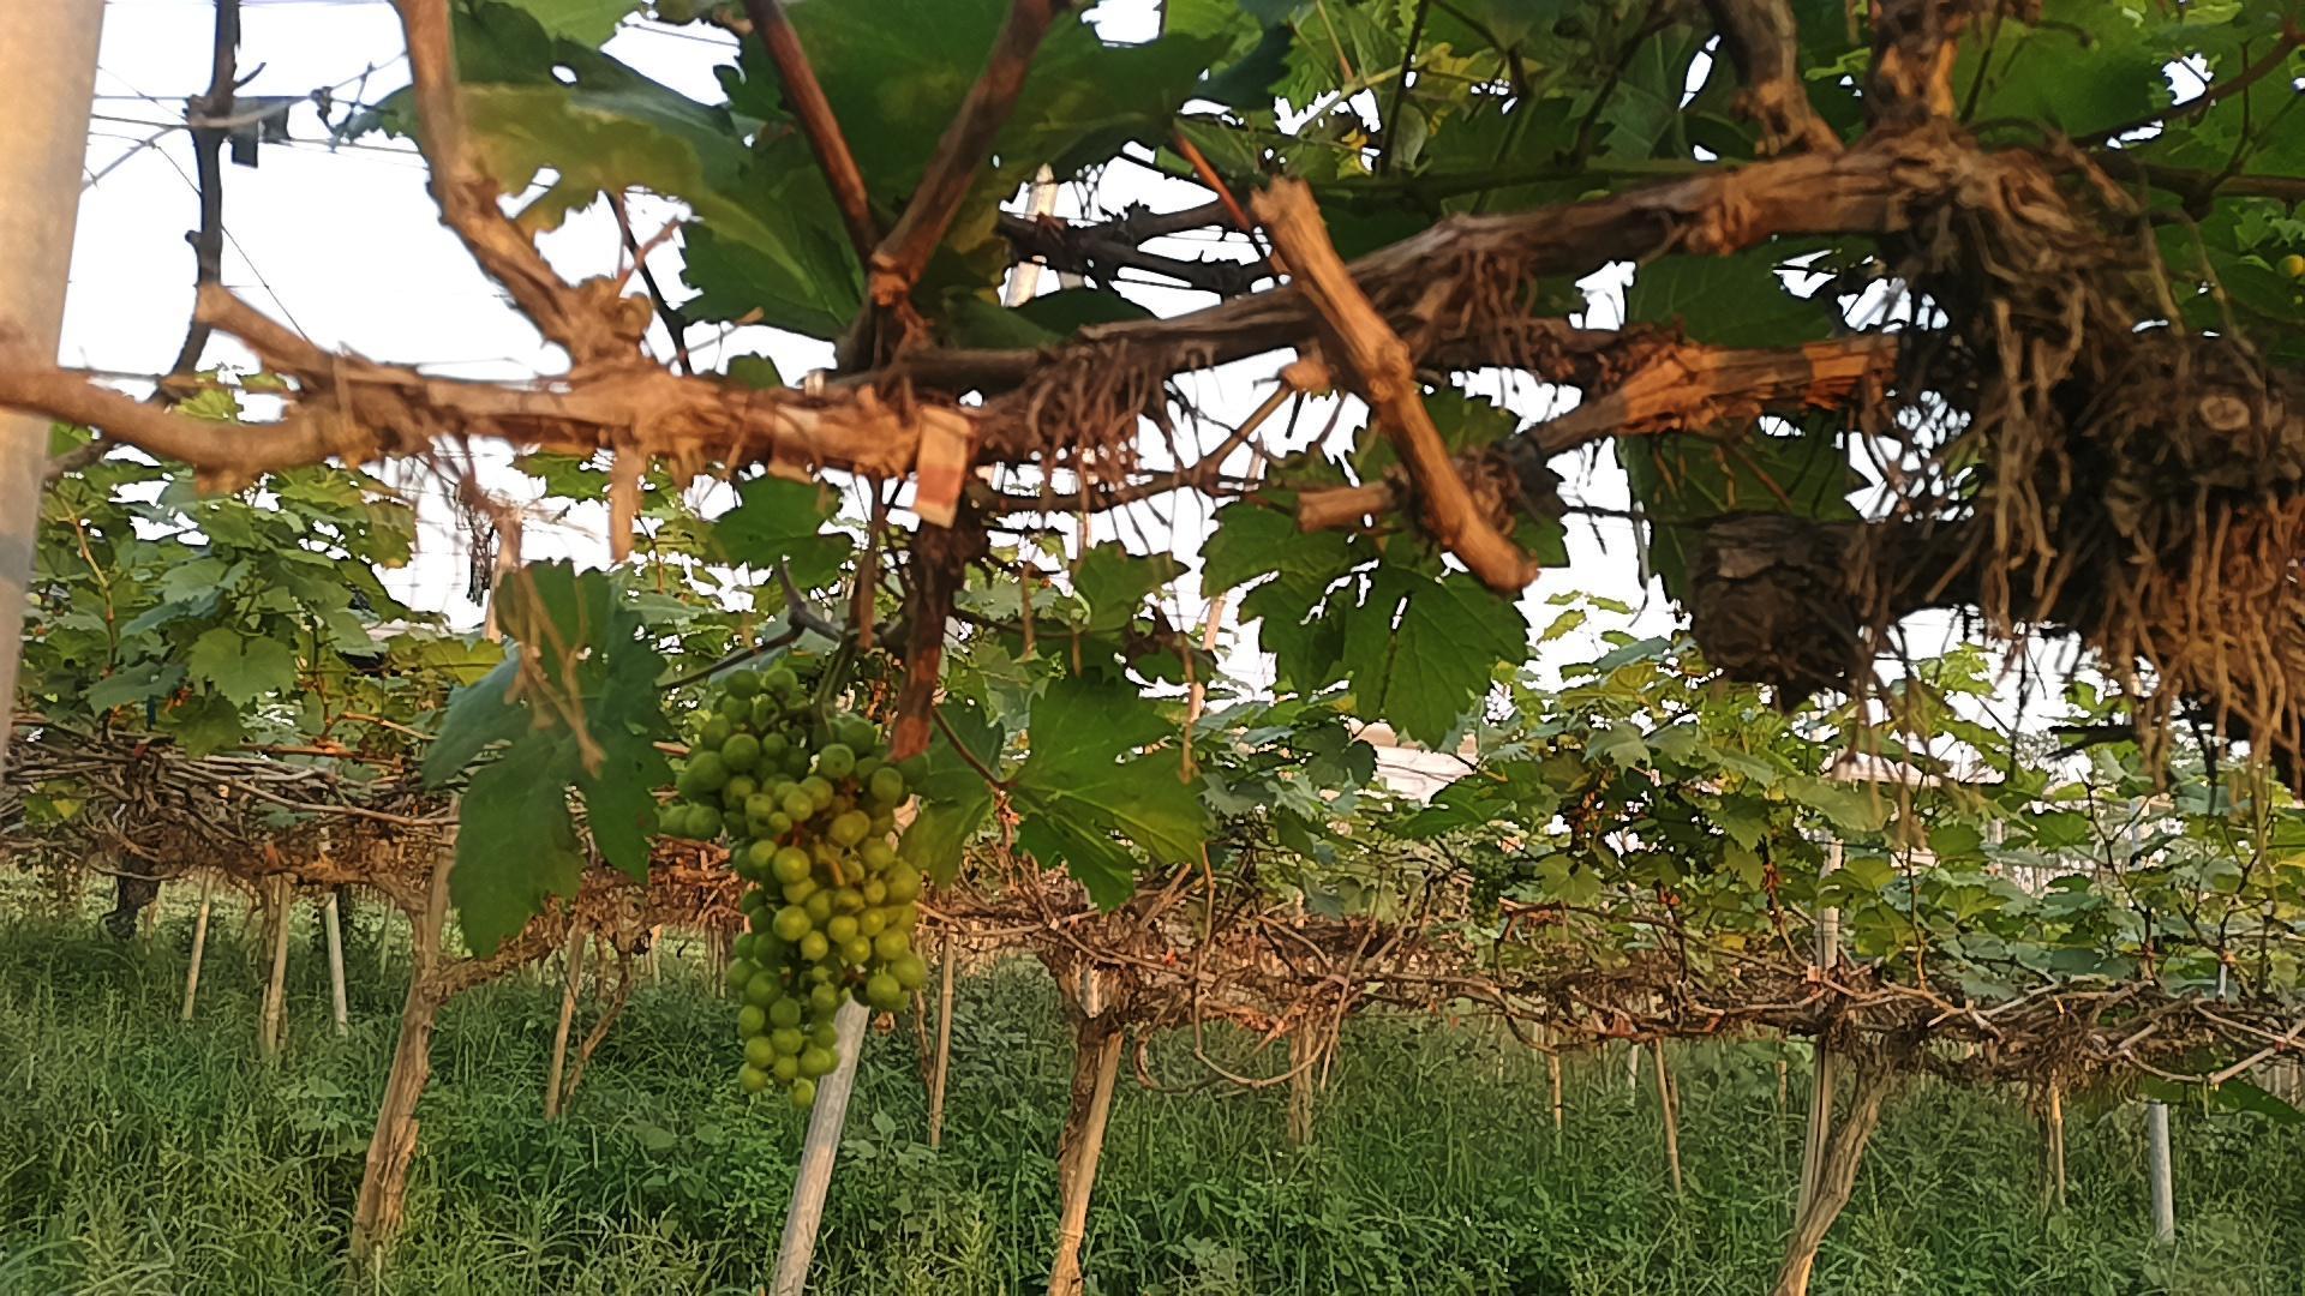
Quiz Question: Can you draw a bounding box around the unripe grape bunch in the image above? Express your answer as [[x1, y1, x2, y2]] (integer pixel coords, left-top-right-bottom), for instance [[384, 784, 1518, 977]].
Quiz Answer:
[[660, 659, 924, 1106]]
